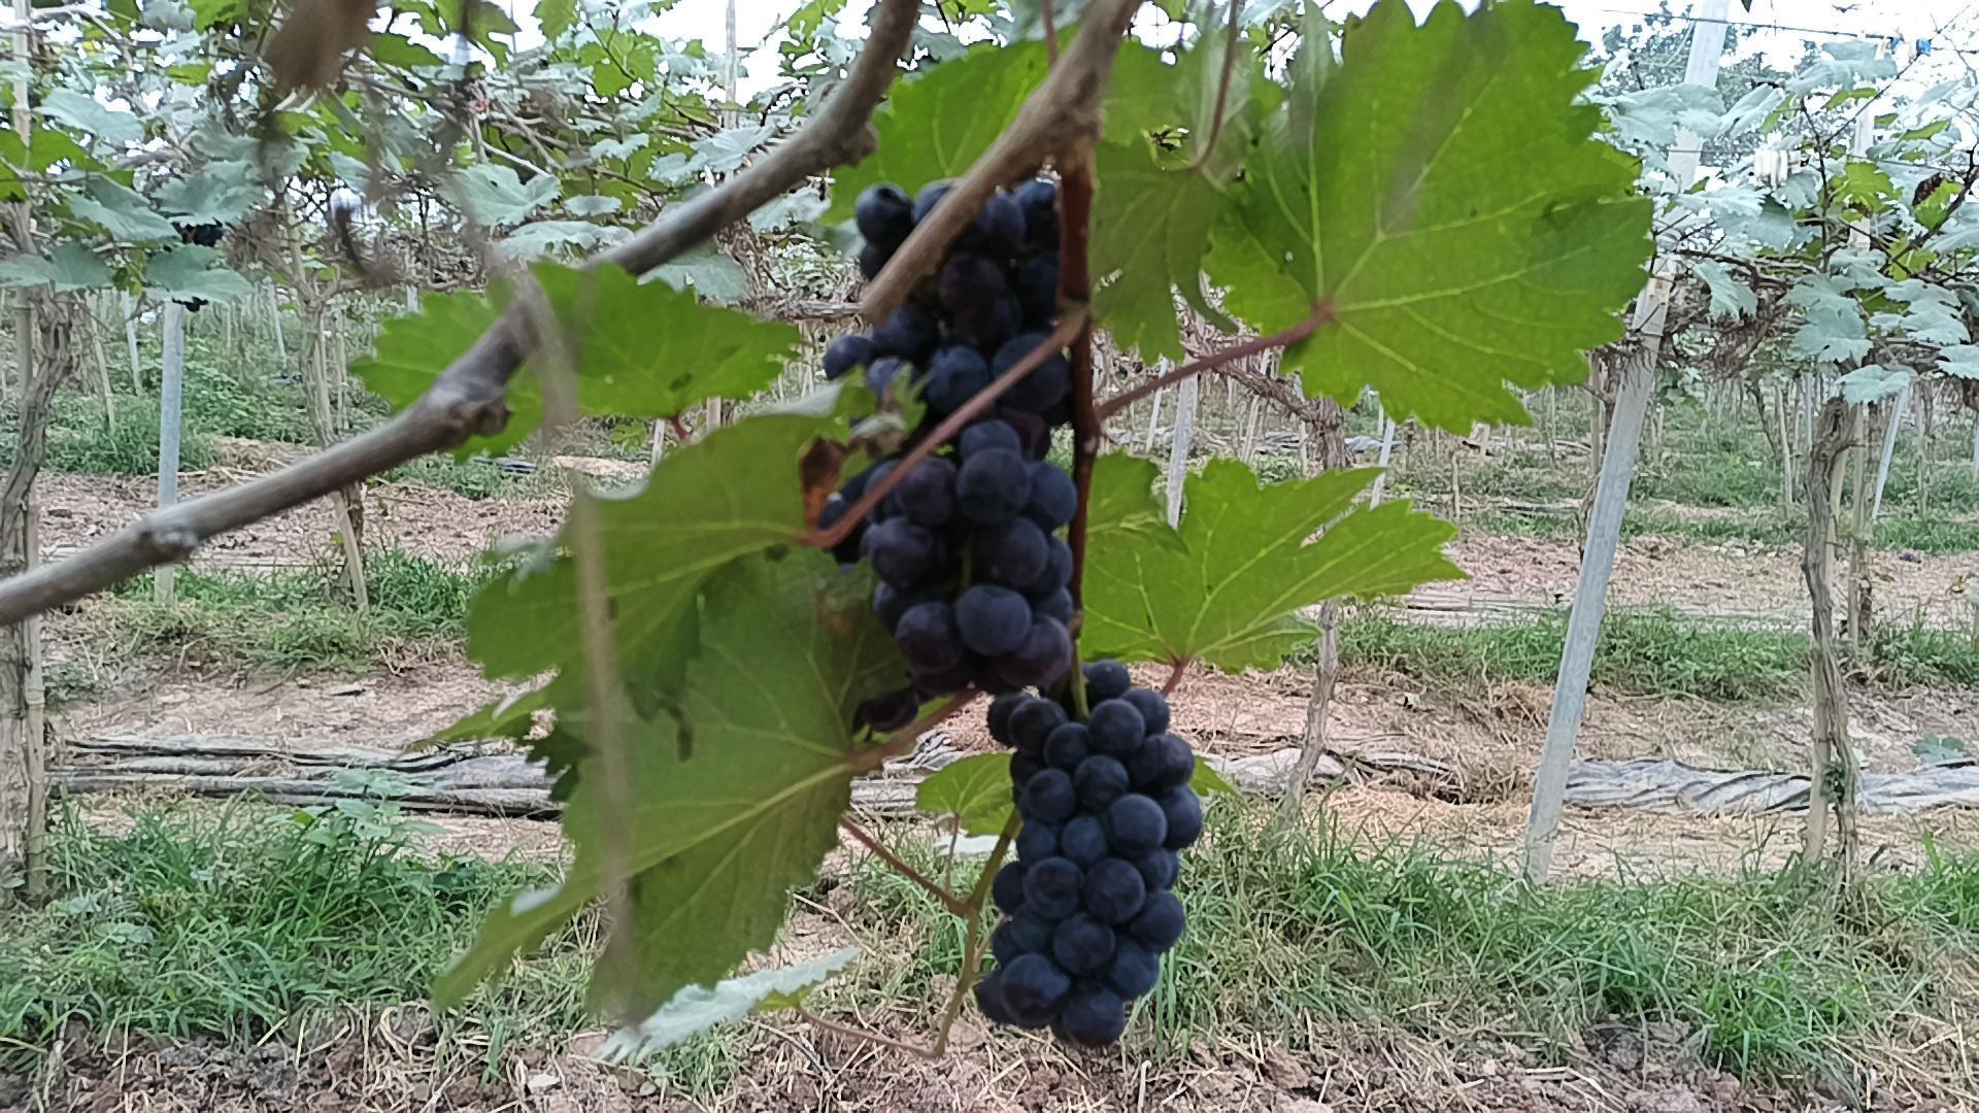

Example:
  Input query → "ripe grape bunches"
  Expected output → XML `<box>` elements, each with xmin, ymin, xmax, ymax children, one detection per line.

<box><xmin>814</xmin><ymin>176</ymin><xmax>1081</xmax><ymax>729</ymax></box>
<box><xmin>976</xmin><ymin>661</ymin><xmax>1202</xmax><ymax>1047</ymax></box>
